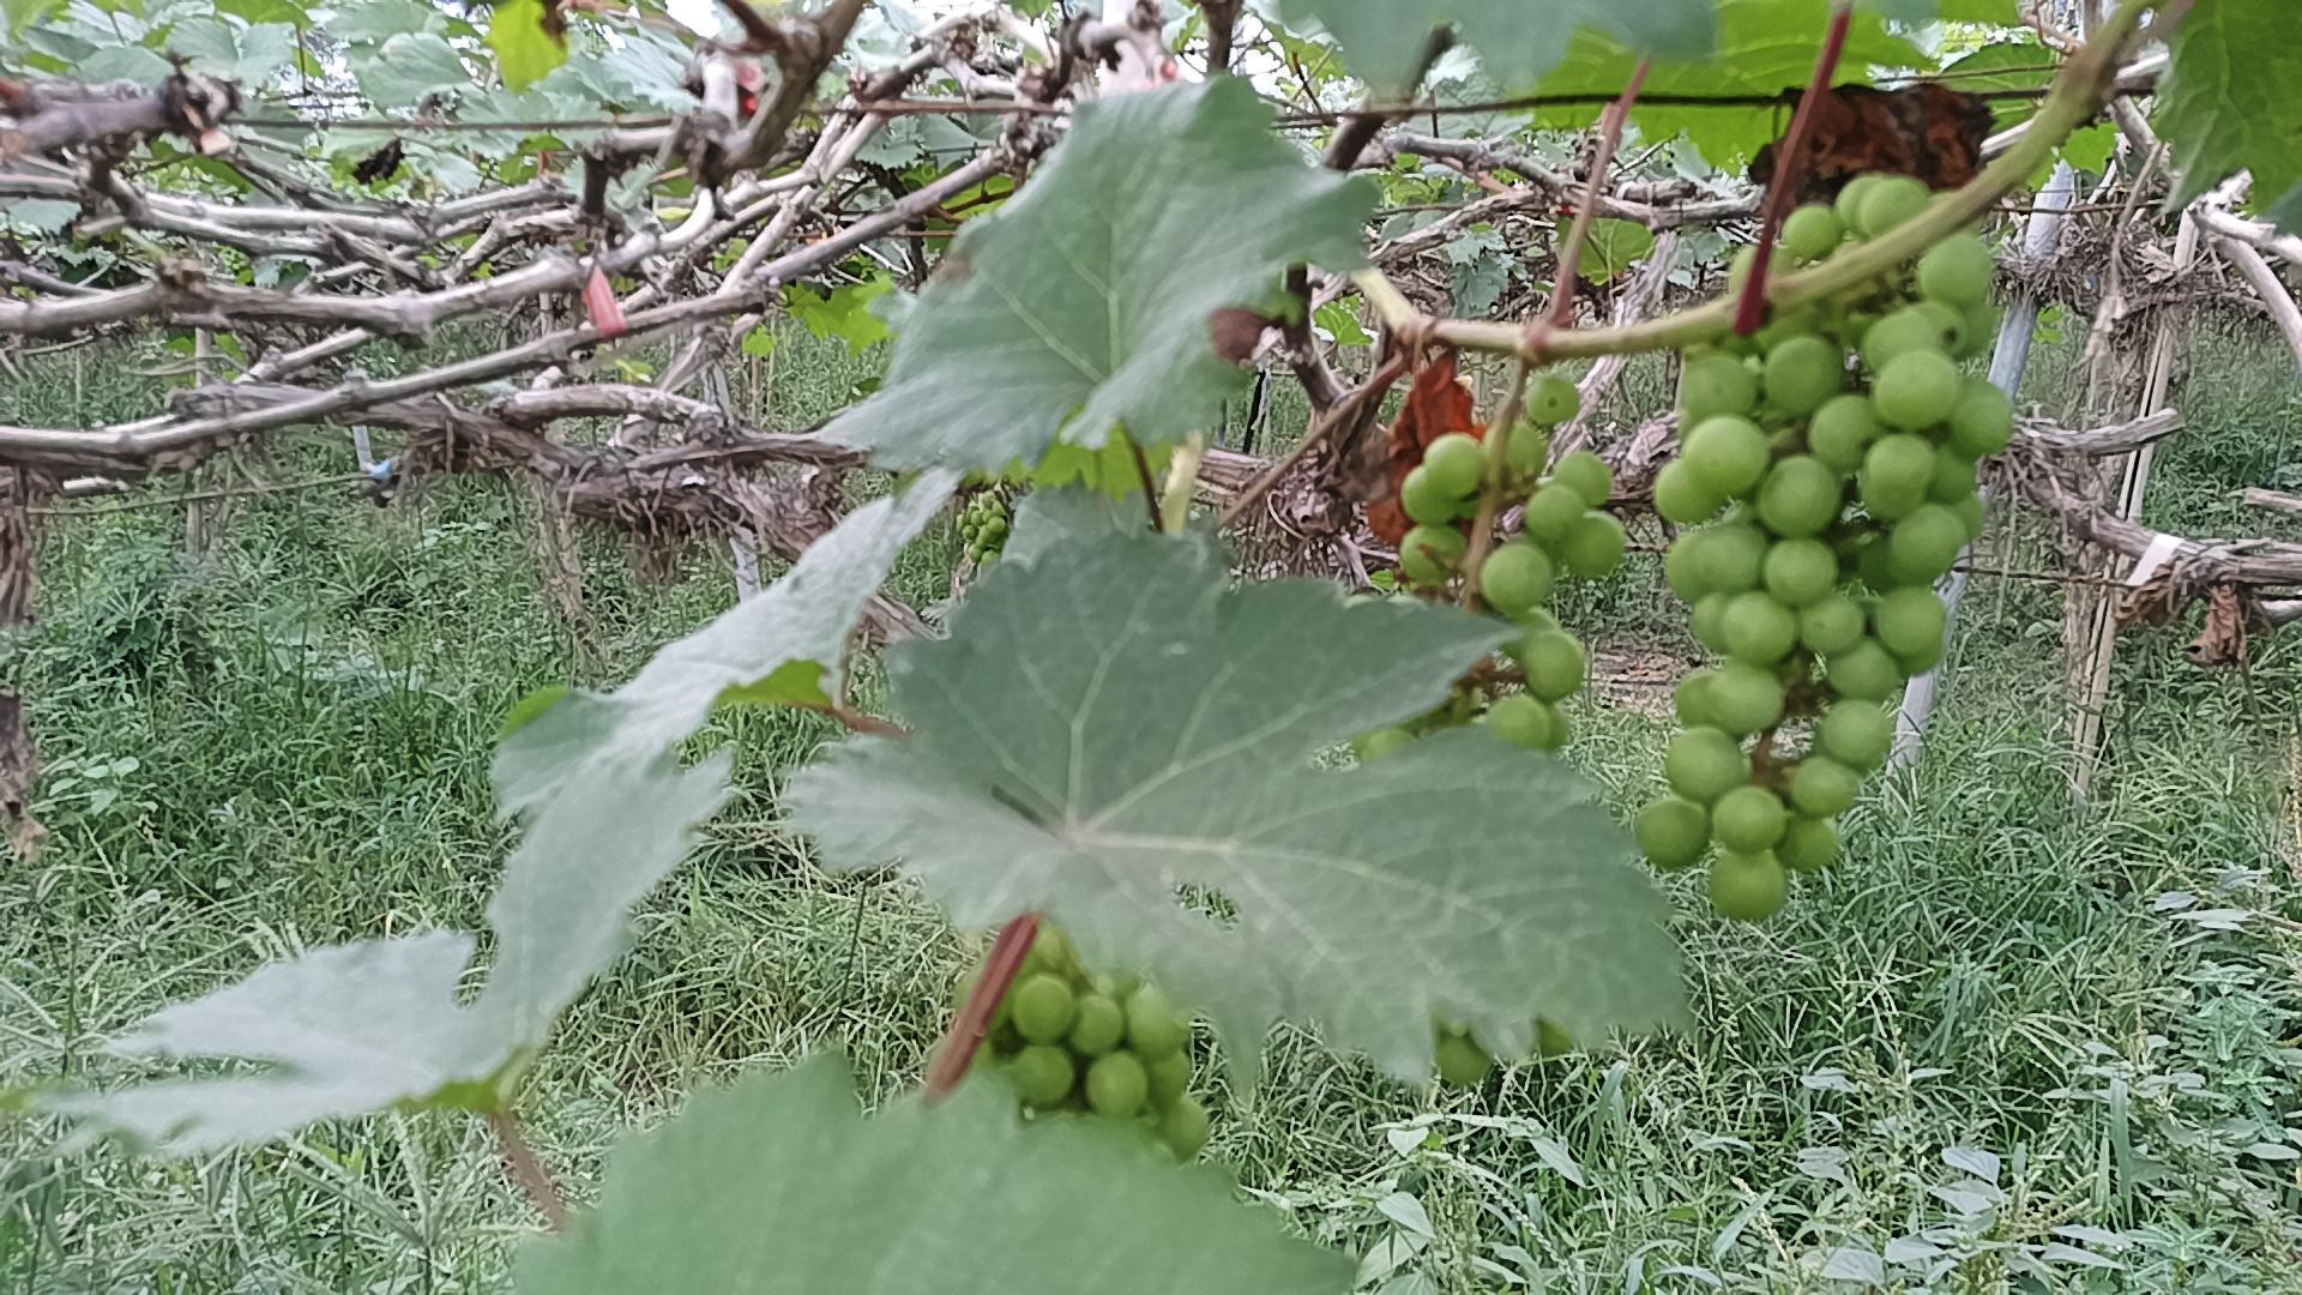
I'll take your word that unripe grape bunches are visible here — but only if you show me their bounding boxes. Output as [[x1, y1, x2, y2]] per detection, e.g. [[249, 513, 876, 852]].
[[1360, 375, 1625, 757], [1634, 173, 2009, 920], [953, 917, 1209, 1158]]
